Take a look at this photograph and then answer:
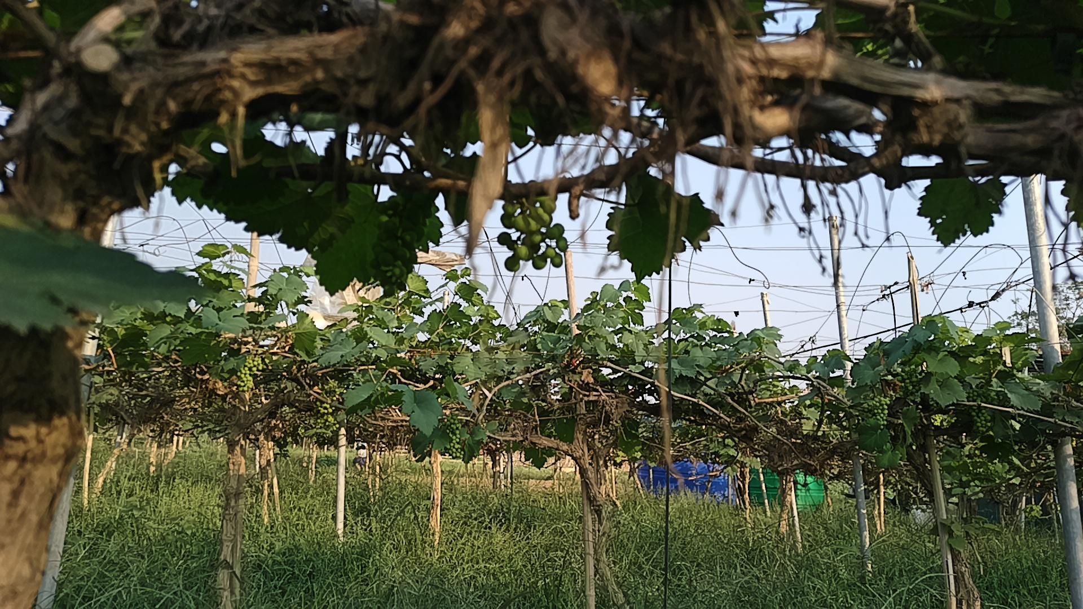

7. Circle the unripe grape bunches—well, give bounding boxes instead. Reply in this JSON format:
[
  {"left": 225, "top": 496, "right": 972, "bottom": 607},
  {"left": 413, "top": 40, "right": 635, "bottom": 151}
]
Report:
[
  {"left": 496, "top": 198, "right": 568, "bottom": 272},
  {"left": 932, "top": 414, "right": 950, "bottom": 426},
  {"left": 858, "top": 395, "right": 891, "bottom": 427},
  {"left": 234, "top": 352, "right": 268, "bottom": 394},
  {"left": 440, "top": 416, "right": 463, "bottom": 460},
  {"left": 966, "top": 389, "right": 990, "bottom": 435},
  {"left": 316, "top": 380, "right": 343, "bottom": 433}
]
